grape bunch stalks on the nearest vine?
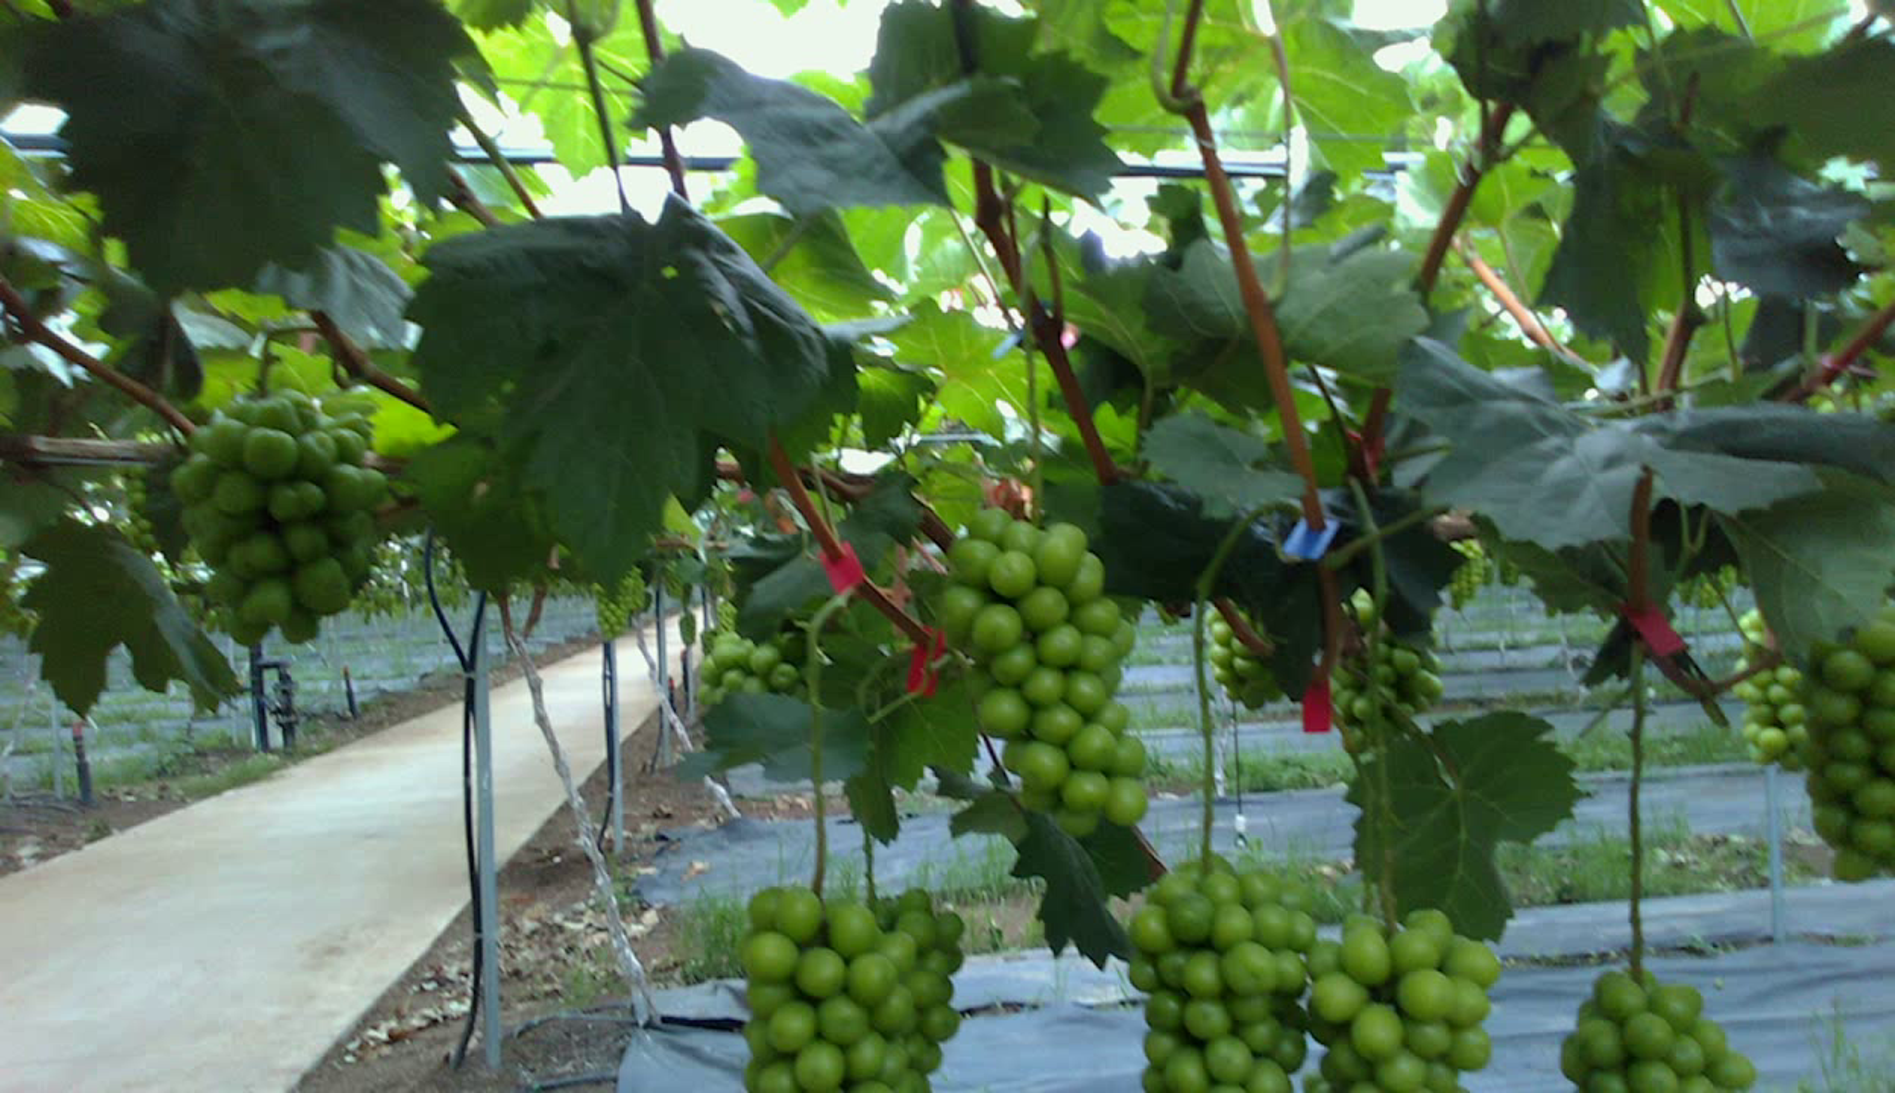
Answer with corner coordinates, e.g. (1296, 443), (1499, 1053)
(805, 584), (853, 896)
(1022, 234), (1042, 528)
(1622, 650), (1647, 987)
(1189, 495), (1303, 873)
(251, 317), (319, 401)
(1348, 480), (1402, 940)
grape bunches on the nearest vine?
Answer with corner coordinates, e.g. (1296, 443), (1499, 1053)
(1298, 911), (1500, 1091)
(1561, 969), (1755, 1091)
(736, 887), (916, 1090)
(938, 507), (1149, 838)
(1799, 597), (1893, 880)
(169, 387), (387, 645)
(1127, 852), (1313, 1091)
